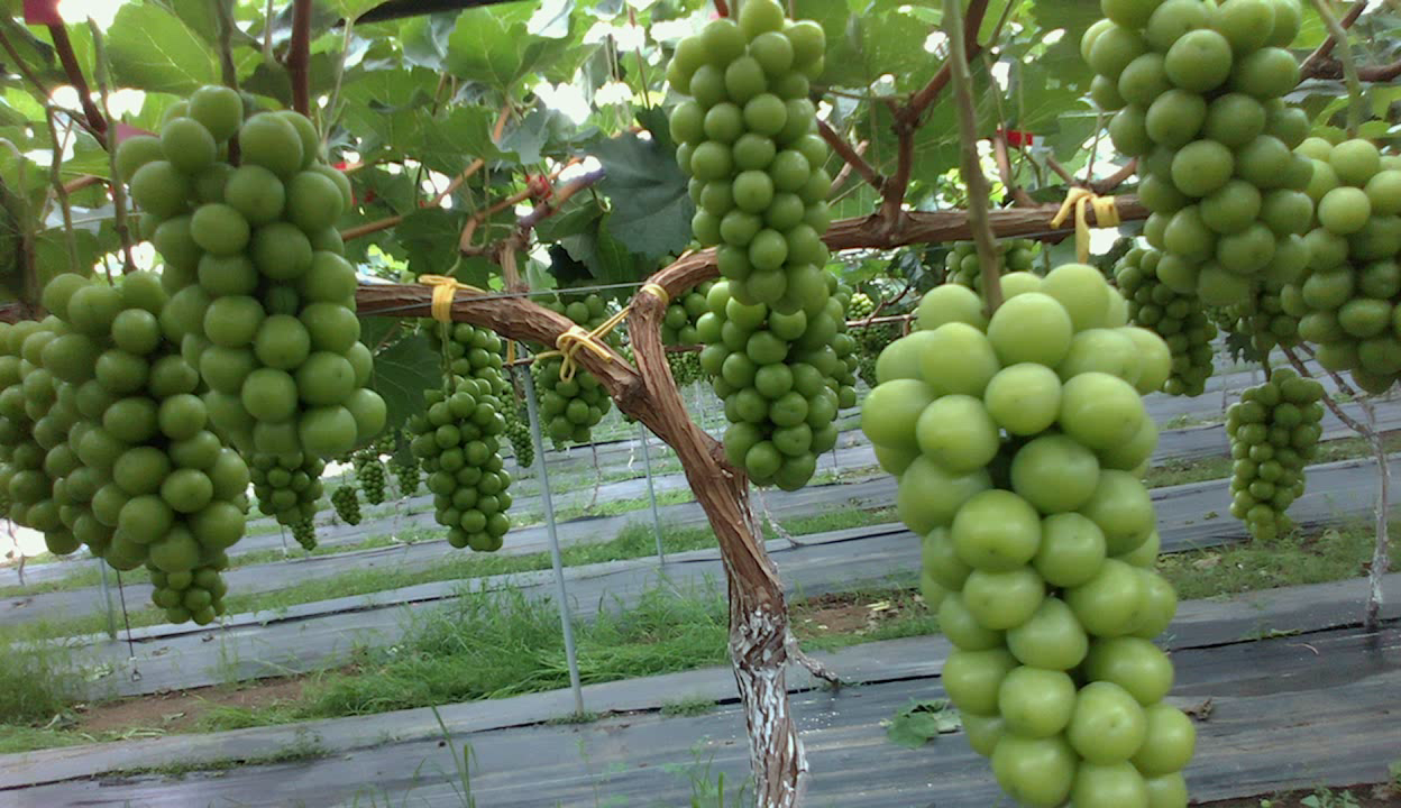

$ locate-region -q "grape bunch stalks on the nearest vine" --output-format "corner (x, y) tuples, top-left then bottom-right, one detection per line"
(89, 19), (136, 273)
(216, 0), (238, 86)
(1311, 0), (1361, 136)
(730, 1), (738, 18)
(1, 138), (43, 320)
(940, 0), (1002, 320)
(46, 104), (80, 273)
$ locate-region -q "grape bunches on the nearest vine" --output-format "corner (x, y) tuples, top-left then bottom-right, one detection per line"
(40, 270), (251, 573)
(665, 0), (833, 315)
(8, 320), (121, 569)
(861, 259), (1196, 807)
(1280, 137), (1400, 397)
(698, 278), (842, 492)
(0, 320), (76, 557)
(117, 84), (386, 460)
(1080, 0), (1316, 304)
